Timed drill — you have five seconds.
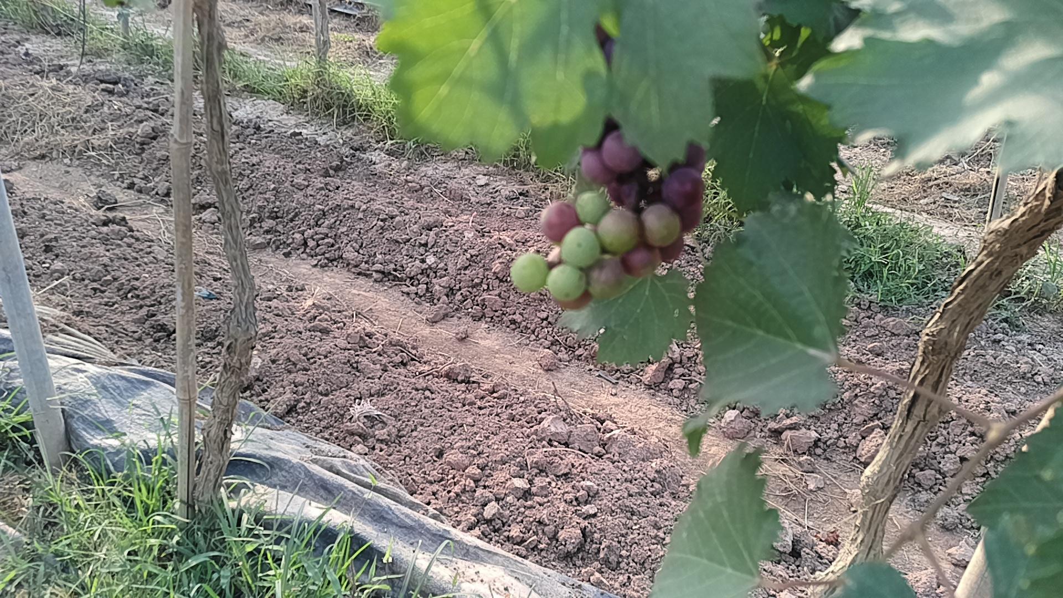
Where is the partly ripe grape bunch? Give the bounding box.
[512,117,705,310]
